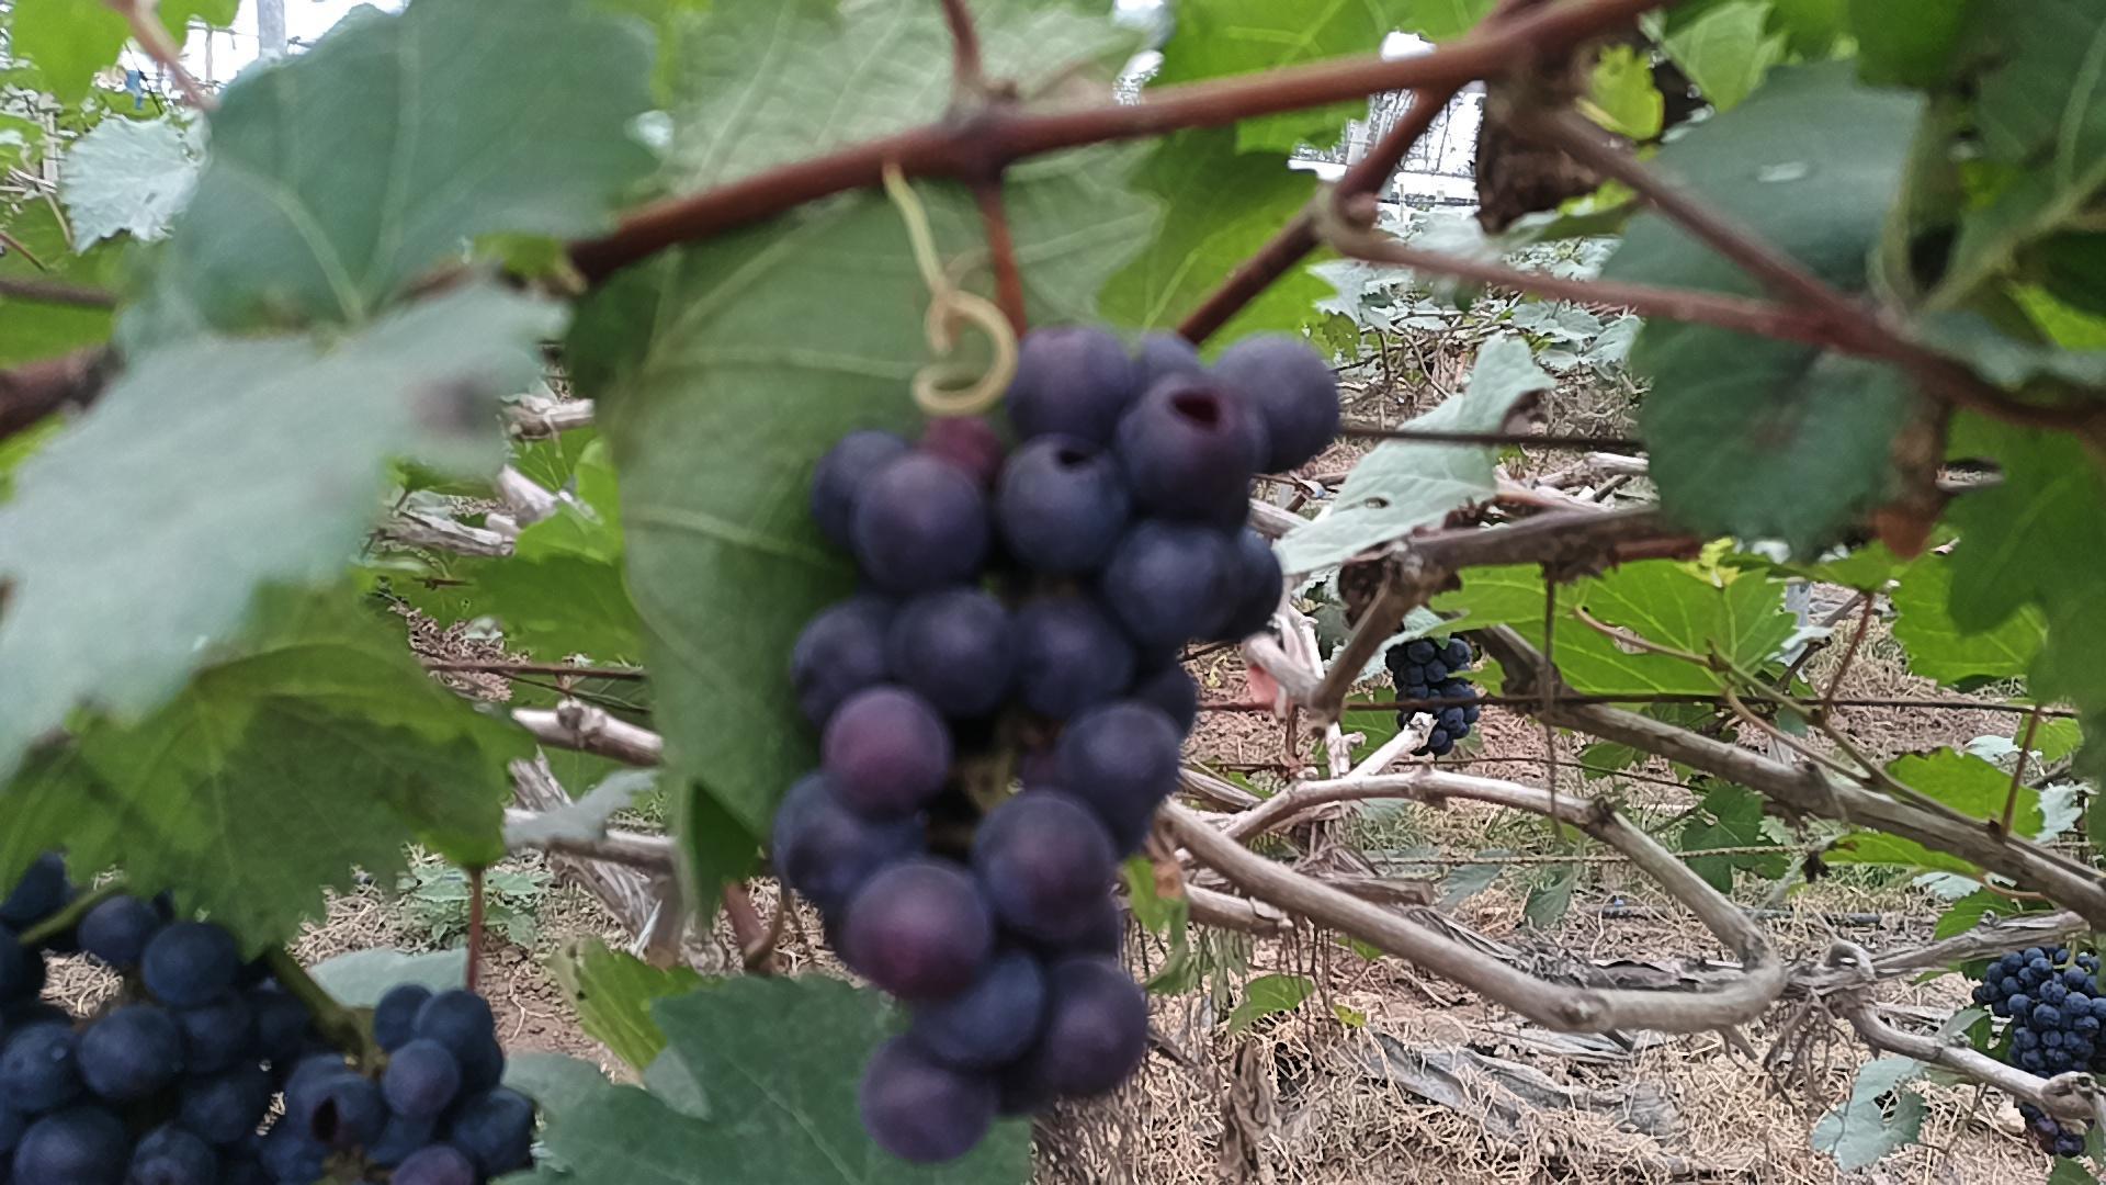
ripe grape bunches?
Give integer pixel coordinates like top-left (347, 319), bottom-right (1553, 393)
top-left (1972, 946), bottom-right (2105, 1163)
top-left (772, 327), bottom-right (1339, 1159)
top-left (1382, 632), bottom-right (1480, 757)
top-left (0, 853), bottom-right (535, 1184)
